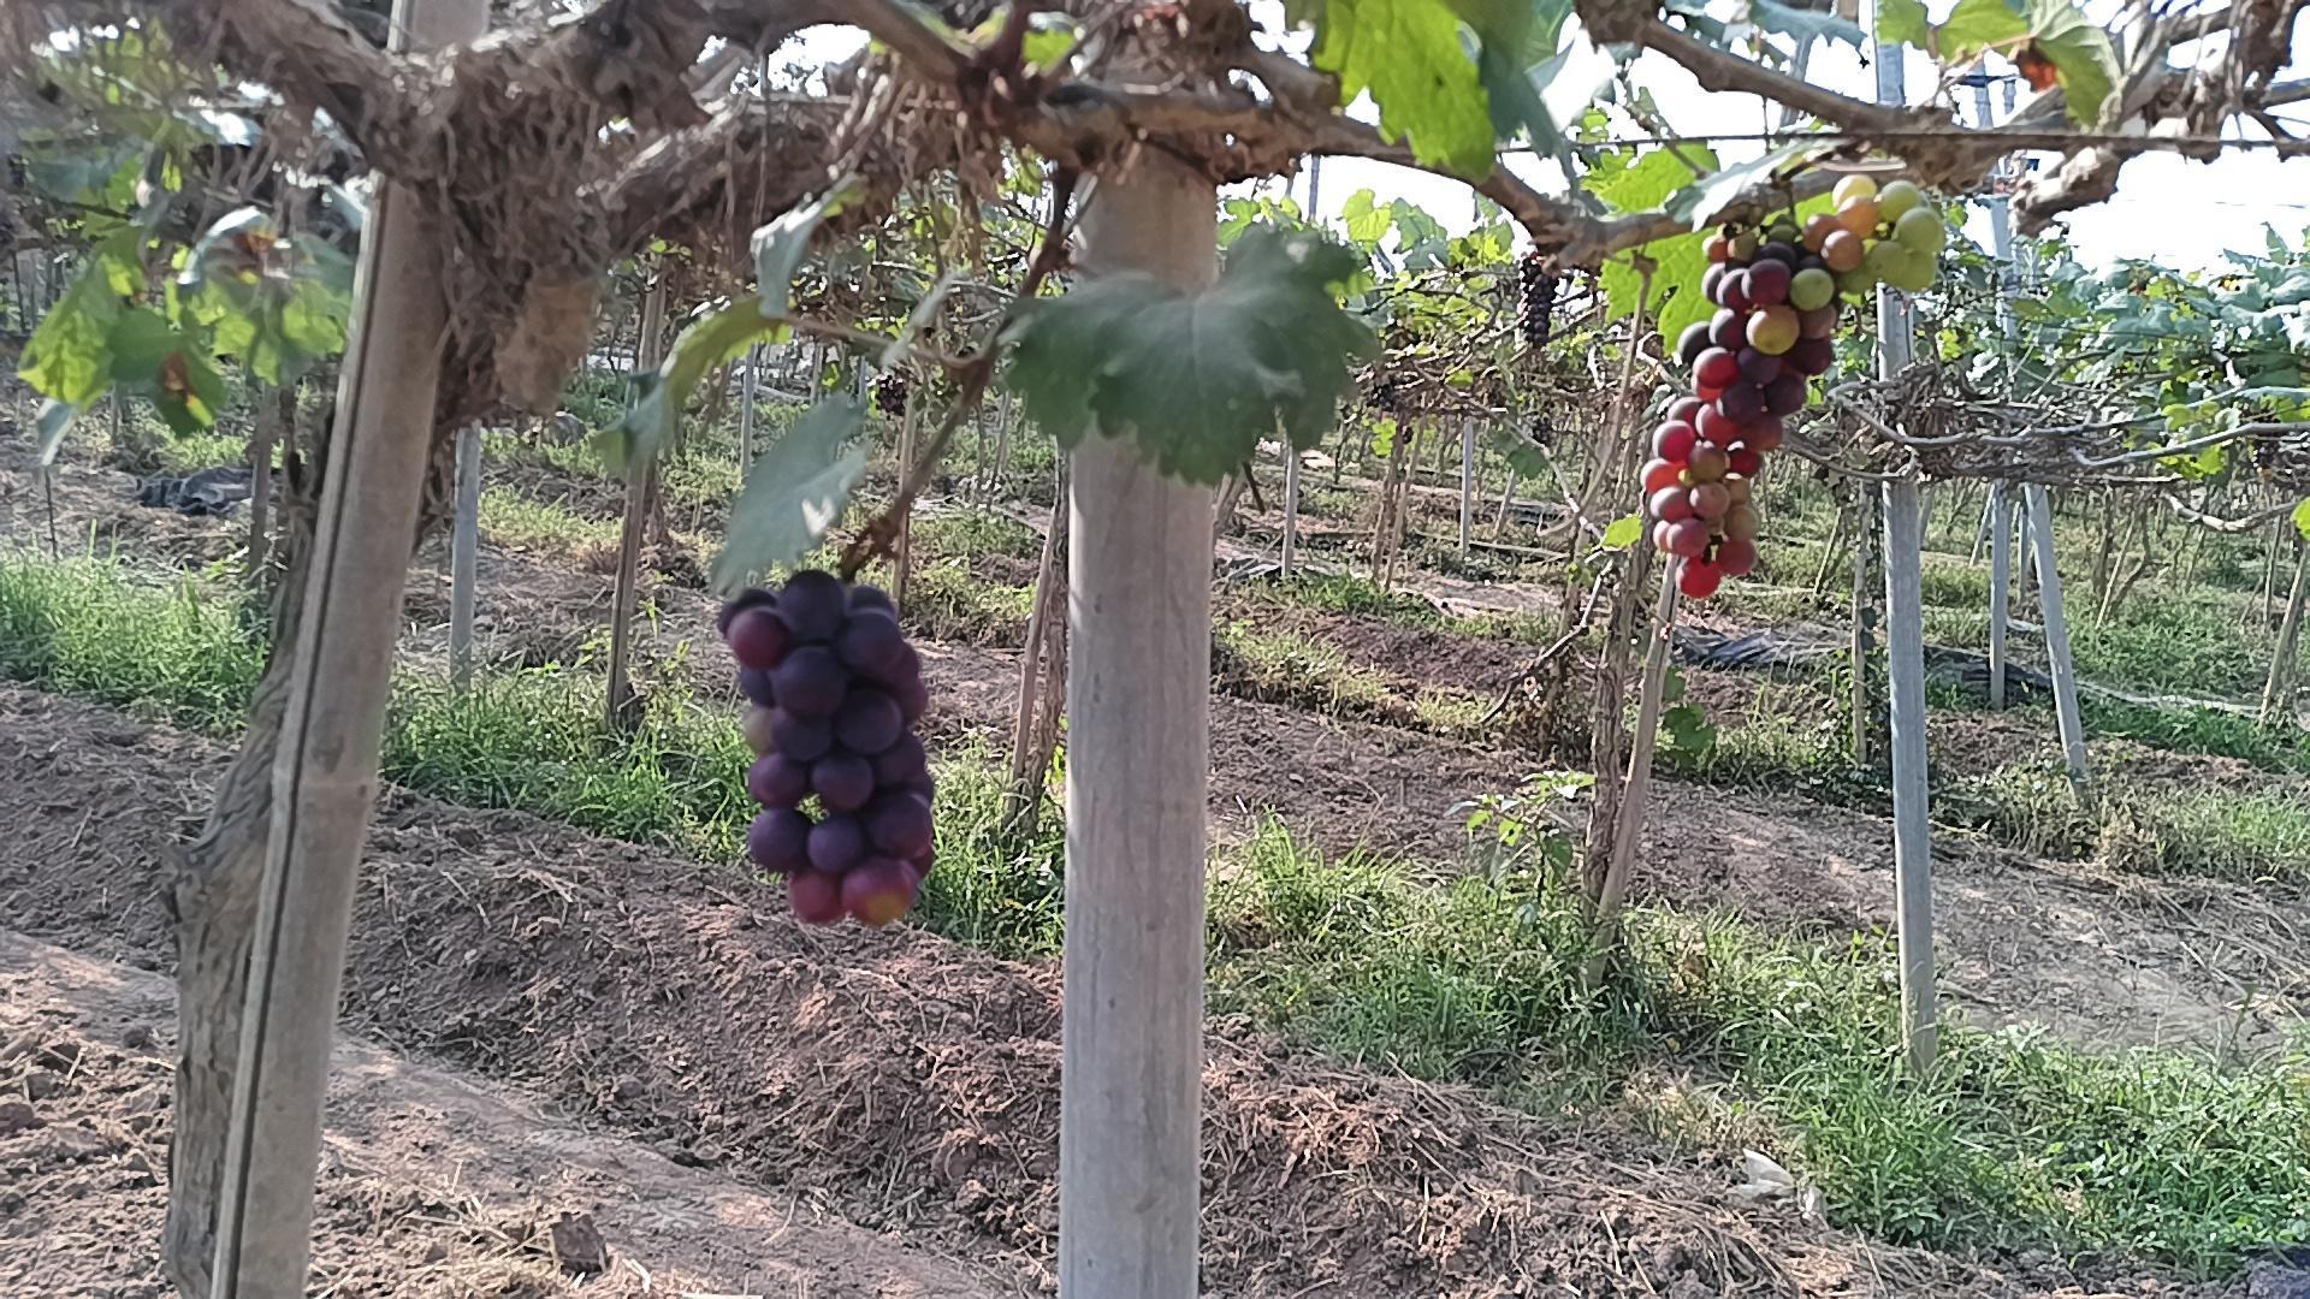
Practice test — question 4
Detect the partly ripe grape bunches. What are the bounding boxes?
[717,570,934,926]
[1642,174,1944,598]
